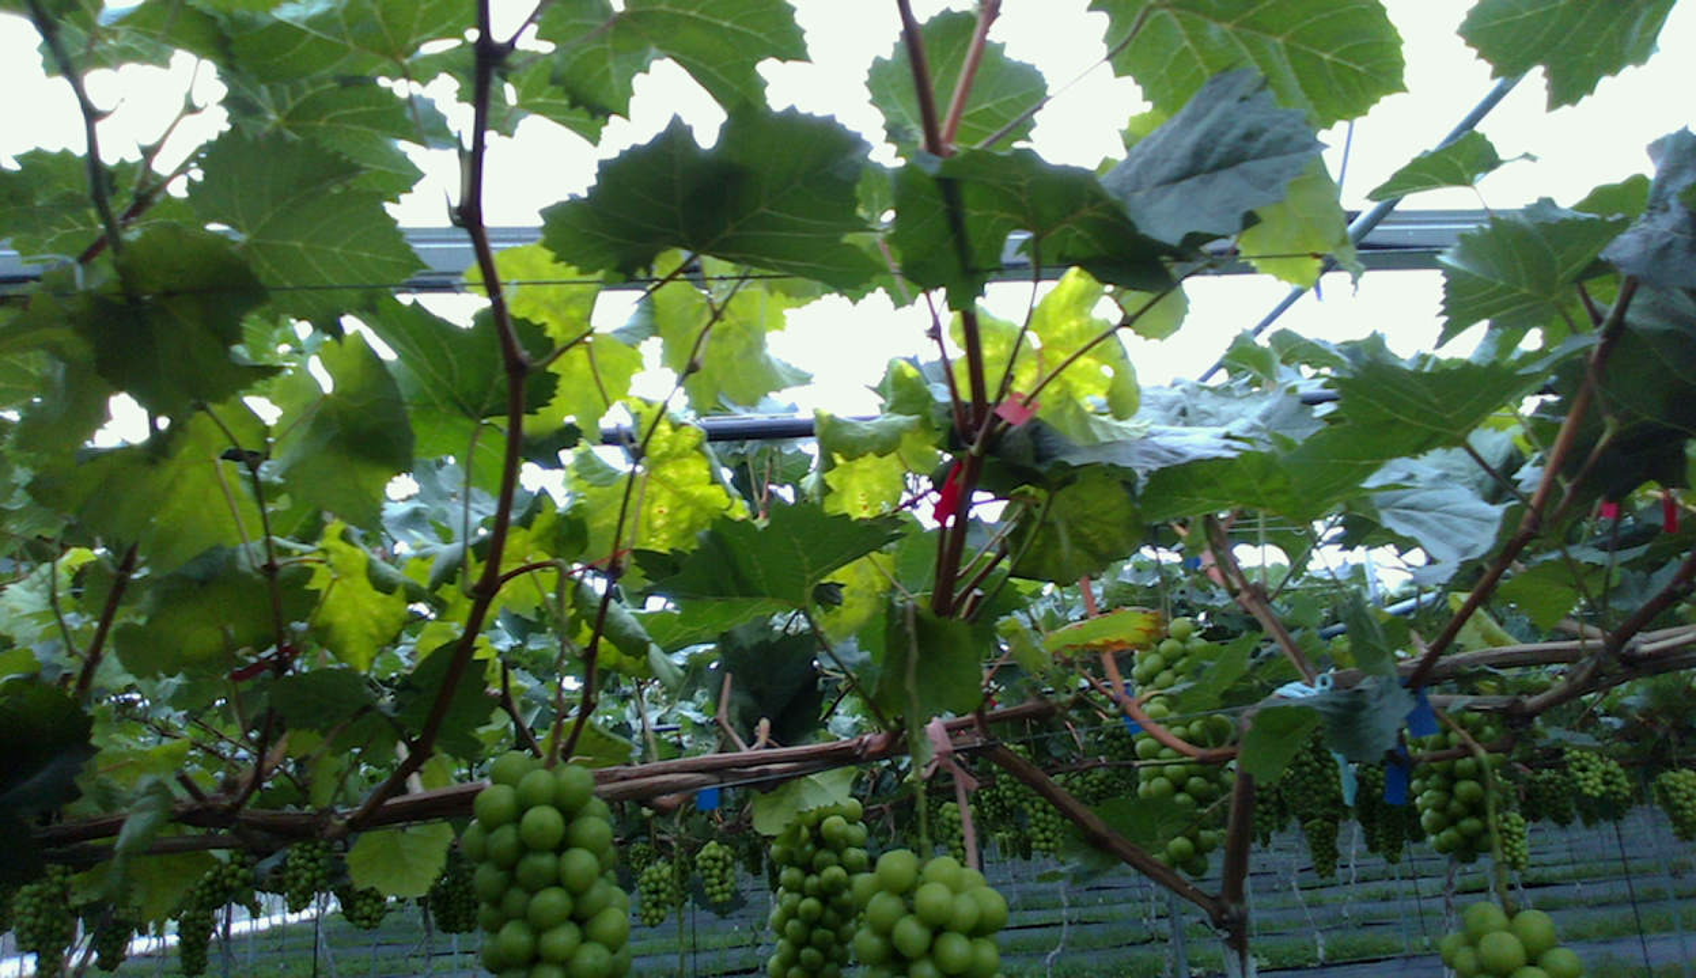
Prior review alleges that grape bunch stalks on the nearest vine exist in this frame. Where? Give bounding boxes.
[503,558,569,769]
[1435,709,1518,920]
[904,600,931,867]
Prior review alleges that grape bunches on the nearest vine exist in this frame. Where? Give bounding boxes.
[852,849,1008,977]
[459,750,633,977]
[1439,901,1585,977]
